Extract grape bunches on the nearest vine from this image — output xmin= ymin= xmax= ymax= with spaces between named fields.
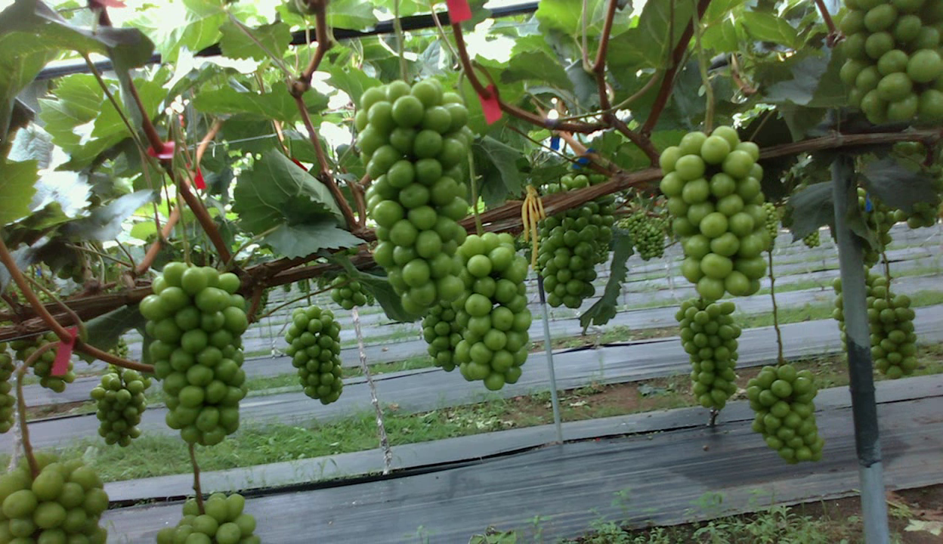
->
xmin=354 ymin=77 xmax=474 ymax=314
xmin=0 ymin=453 xmax=110 ymax=543
xmin=452 ymin=231 xmax=531 ymax=391
xmin=140 ymin=261 xmax=248 ymax=446
xmin=659 ymin=125 xmax=771 ymax=298
xmin=840 ymin=1 xmax=941 ymax=125
xmin=156 ymin=493 xmax=261 ymax=543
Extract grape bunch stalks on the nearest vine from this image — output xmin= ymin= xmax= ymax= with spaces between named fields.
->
xmin=468 ymin=150 xmax=483 ymax=236
xmin=393 ymin=0 xmax=409 ymax=83
xmin=172 ymin=112 xmax=192 ymax=267
xmin=692 ymin=1 xmax=715 ymax=134
xmin=189 ymin=444 xmax=204 ymax=515
xmin=16 ymin=340 xmax=59 ymax=480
